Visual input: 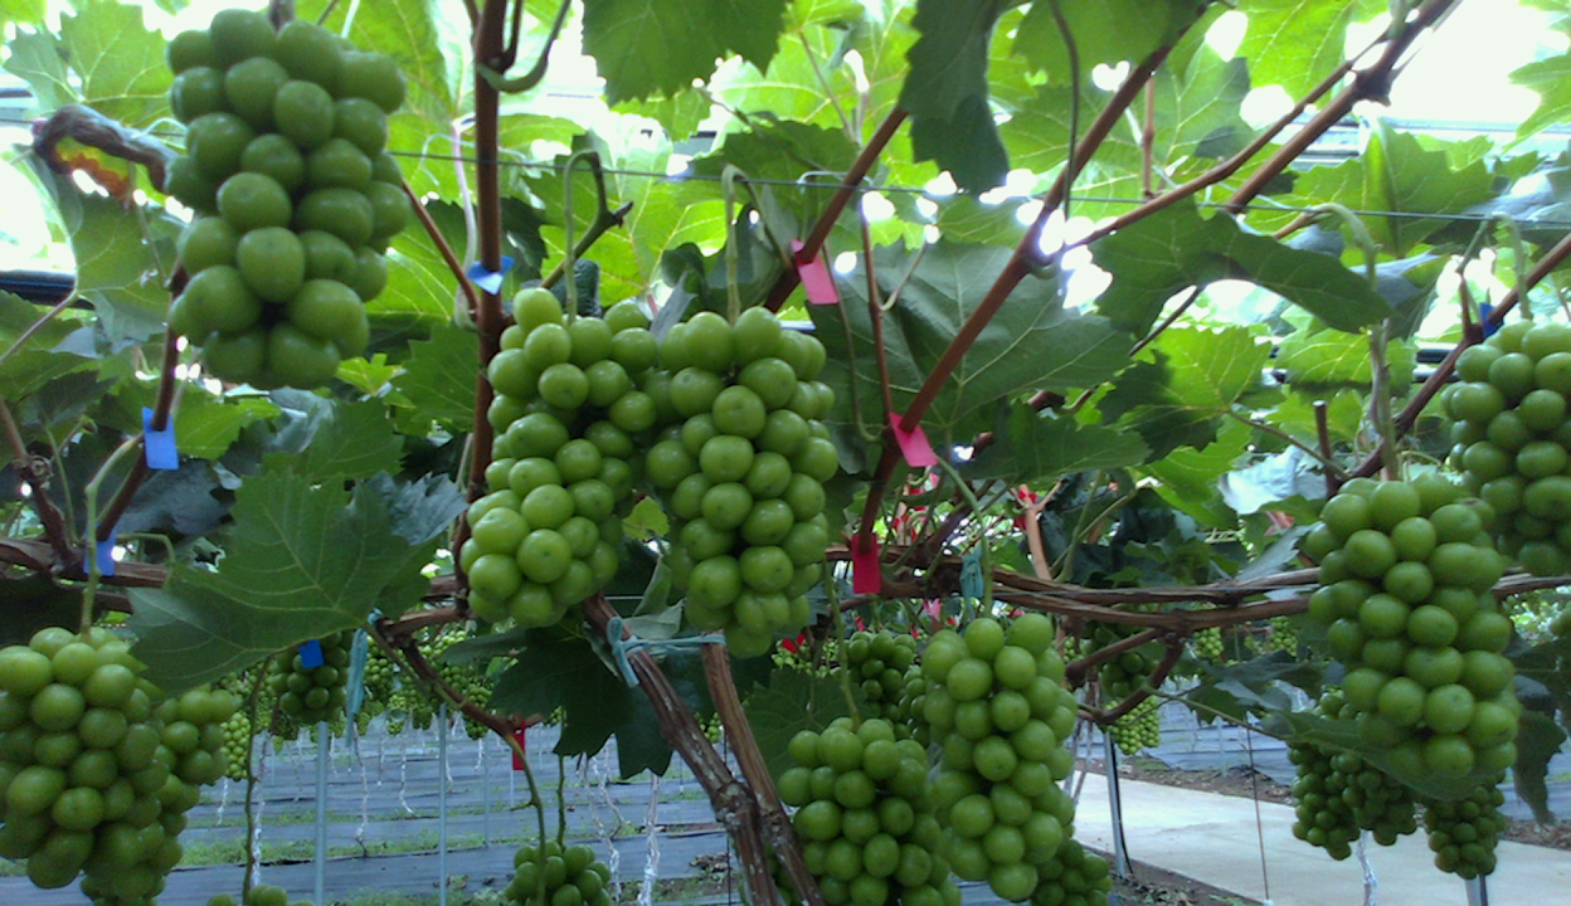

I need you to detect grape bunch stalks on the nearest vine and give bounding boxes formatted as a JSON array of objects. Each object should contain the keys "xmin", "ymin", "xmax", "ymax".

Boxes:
[
  {"xmin": 821, "ymin": 557, "xmax": 860, "ymax": 731},
  {"xmin": 721, "ymin": 164, "xmax": 740, "ymax": 322},
  {"xmin": 561, "ymin": 150, "xmax": 588, "ymax": 325},
  {"xmin": 1483, "ymin": 211, "xmax": 1536, "ymax": 322},
  {"xmin": 79, "ymin": 432, "xmax": 144, "ymax": 643},
  {"xmin": 935, "ymin": 454, "xmax": 993, "ymax": 617},
  {"xmin": 1323, "ymin": 203, "xmax": 1401, "ymax": 479}
]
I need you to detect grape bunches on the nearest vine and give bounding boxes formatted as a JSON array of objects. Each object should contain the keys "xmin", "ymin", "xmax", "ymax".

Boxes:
[
  {"xmin": 461, "ymin": 288, "xmax": 660, "ymax": 627},
  {"xmin": 923, "ymin": 610, "xmax": 1075, "ymax": 900},
  {"xmin": 780, "ymin": 717, "xmax": 959, "ymax": 905},
  {"xmin": 645, "ymin": 308, "xmax": 835, "ymax": 657},
  {"xmin": 166, "ymin": 10, "xmax": 407, "ymax": 394},
  {"xmin": 1304, "ymin": 473, "xmax": 1519, "ymax": 783},
  {"xmin": 1443, "ymin": 322, "xmax": 1570, "ymax": 578},
  {"xmin": 3, "ymin": 625, "xmax": 162, "ymax": 885}
]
